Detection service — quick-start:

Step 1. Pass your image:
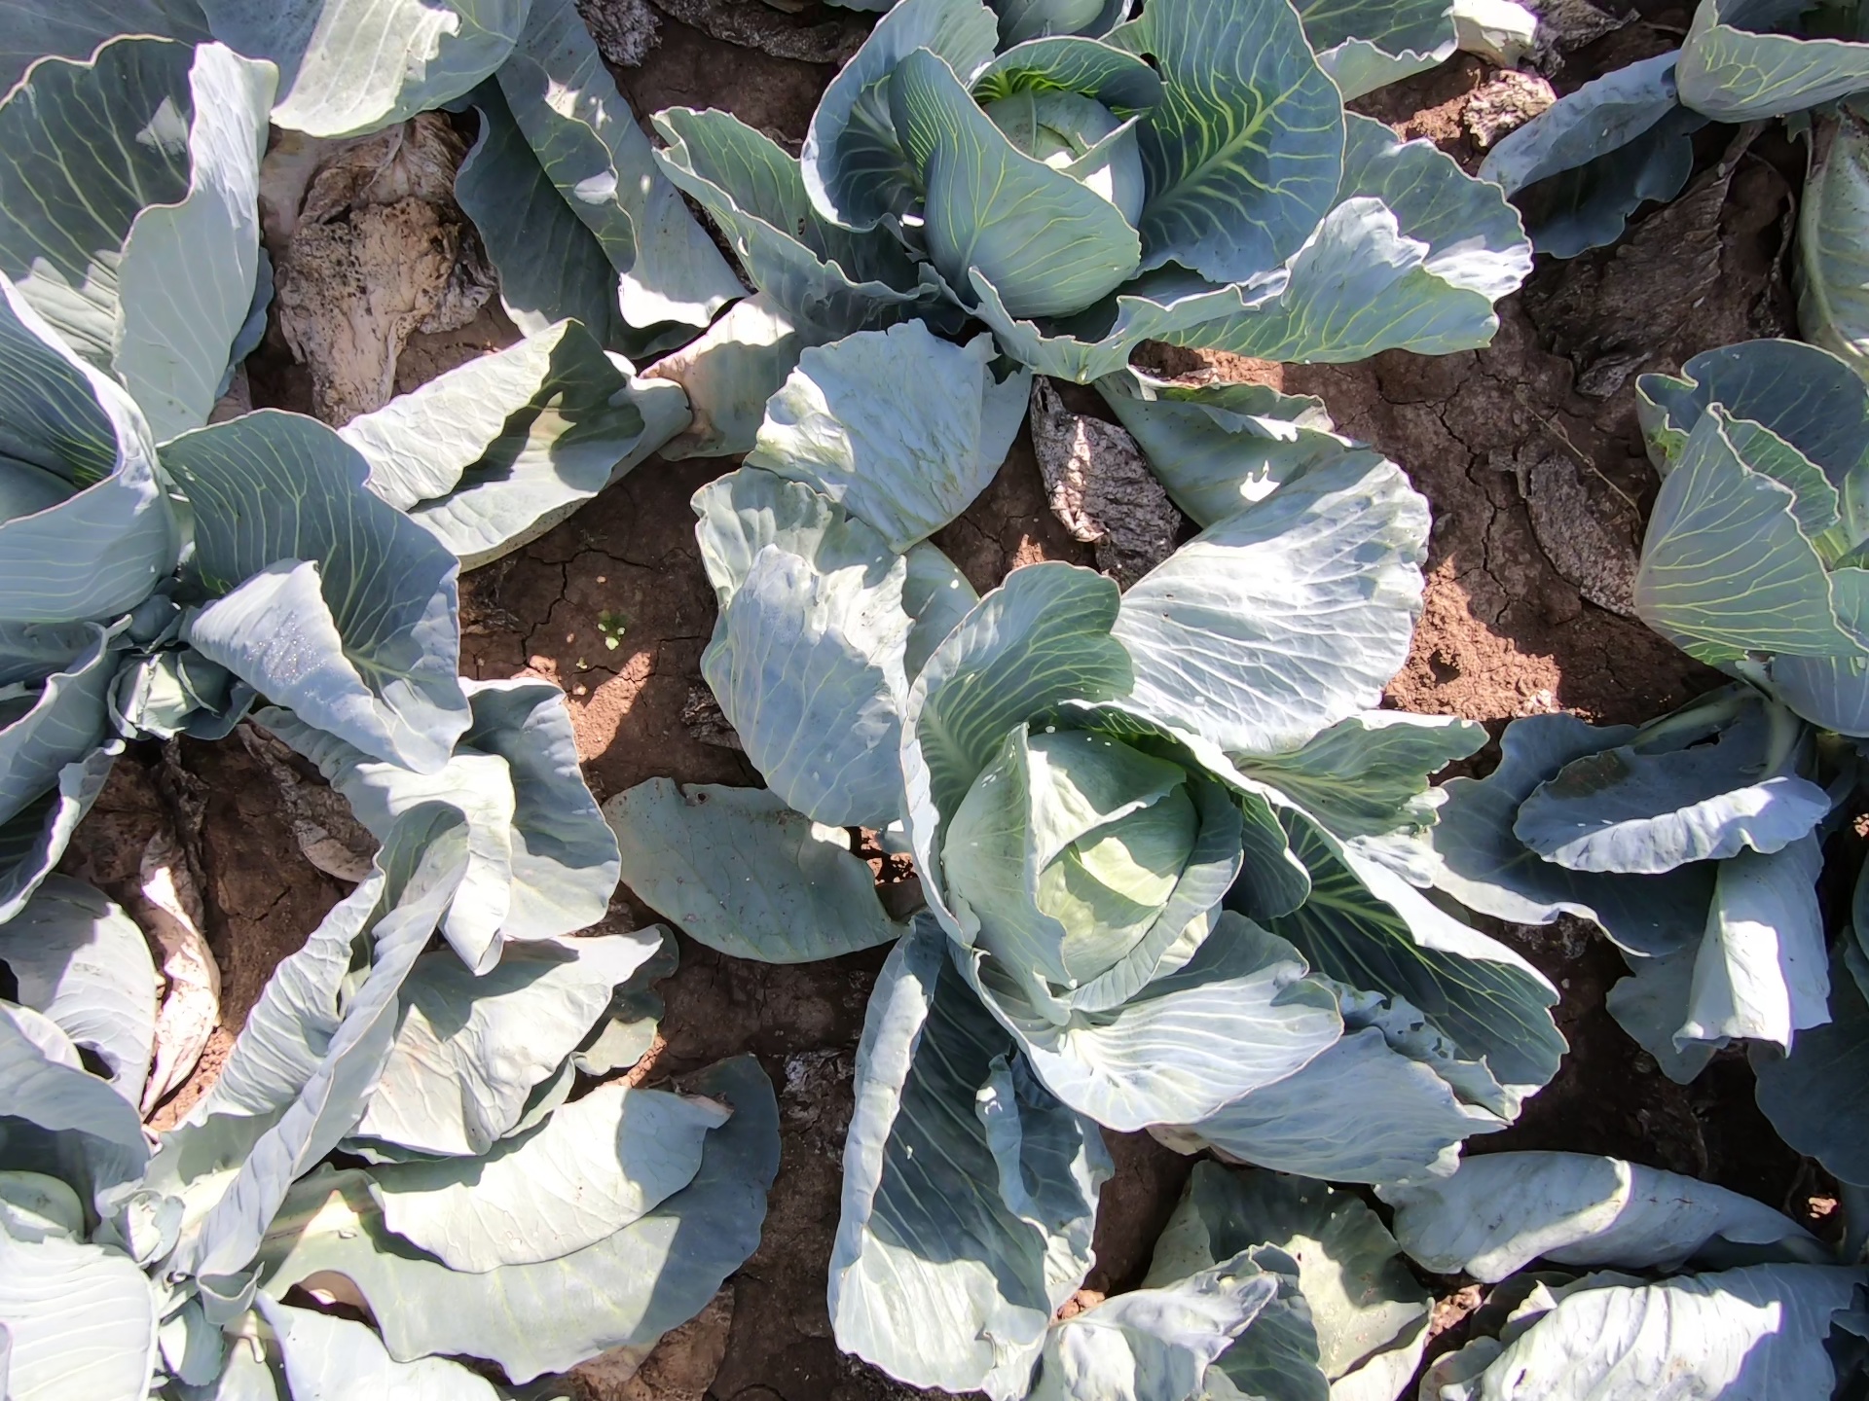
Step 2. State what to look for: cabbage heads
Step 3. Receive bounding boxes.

[955,90,1142,284]
[949,729,1200,986]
